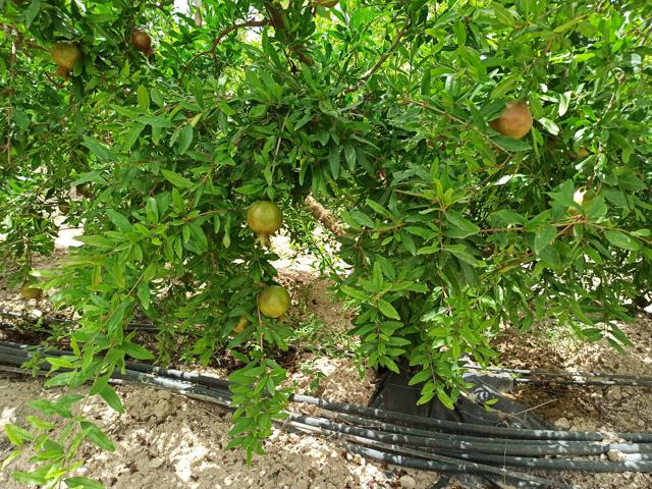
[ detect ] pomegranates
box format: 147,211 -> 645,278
489,103 -> 534,139
247,200 -> 283,248
259,285 -> 293,321
133,31 -> 157,59
19,279 -> 44,302
232,316 -> 252,334
52,44 -> 81,76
